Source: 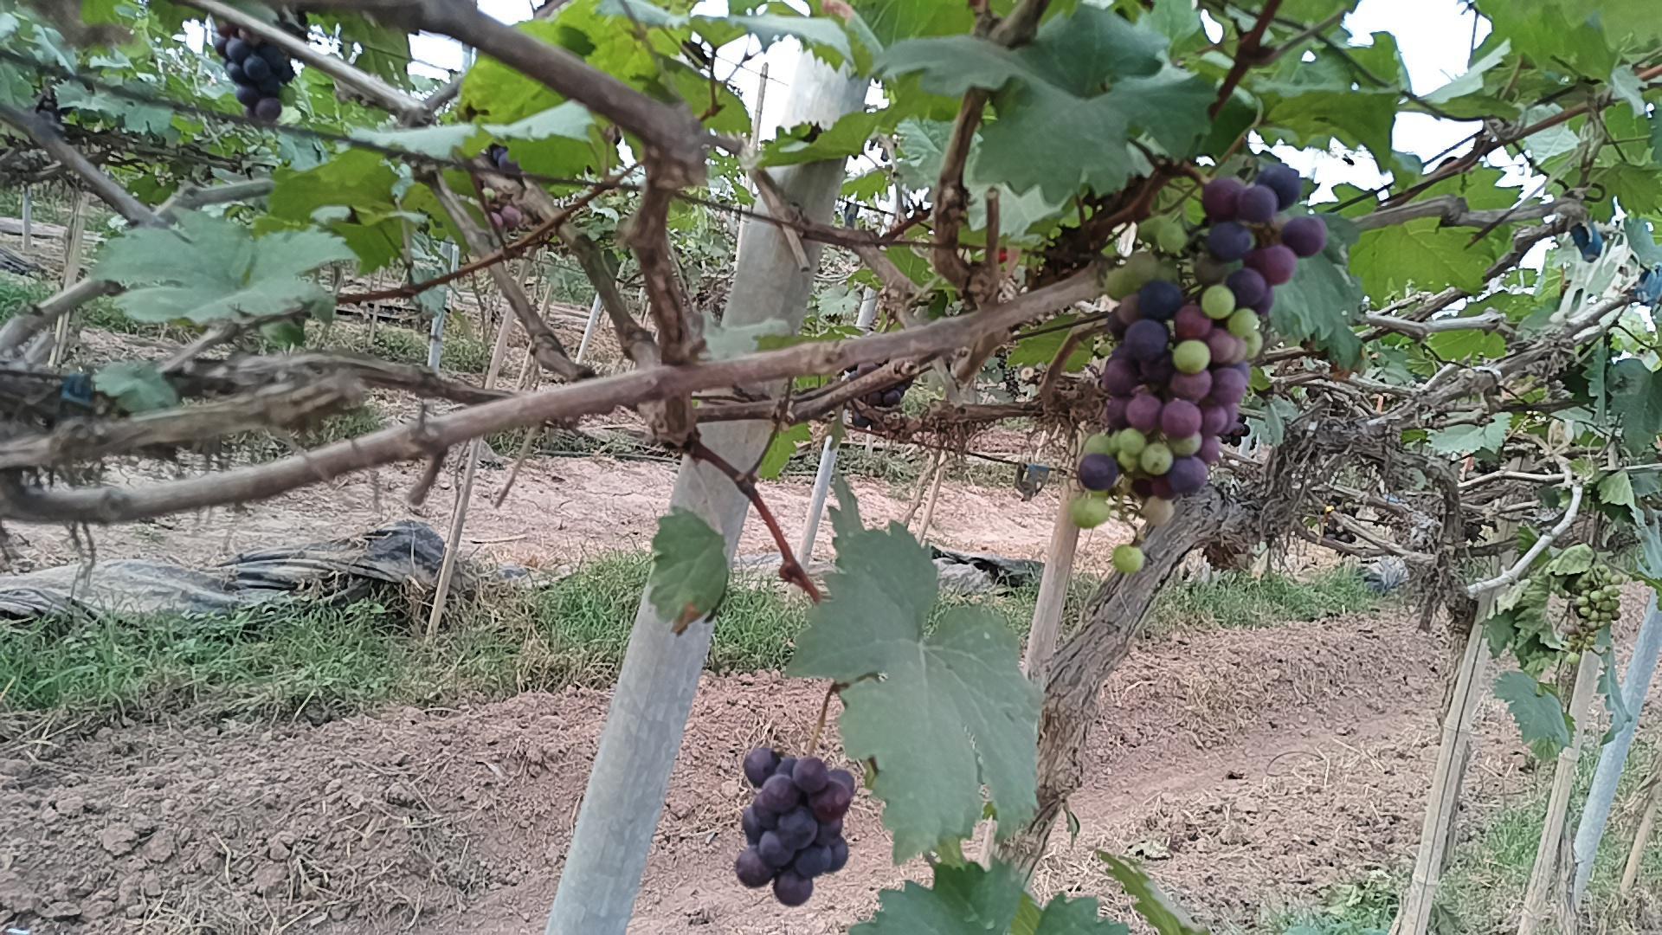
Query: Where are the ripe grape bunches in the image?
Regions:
[731,748,866,910]
[1565,564,1623,664]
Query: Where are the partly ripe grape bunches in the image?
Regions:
[1072,164,1328,576]
[213,10,309,124]
[481,145,527,229]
